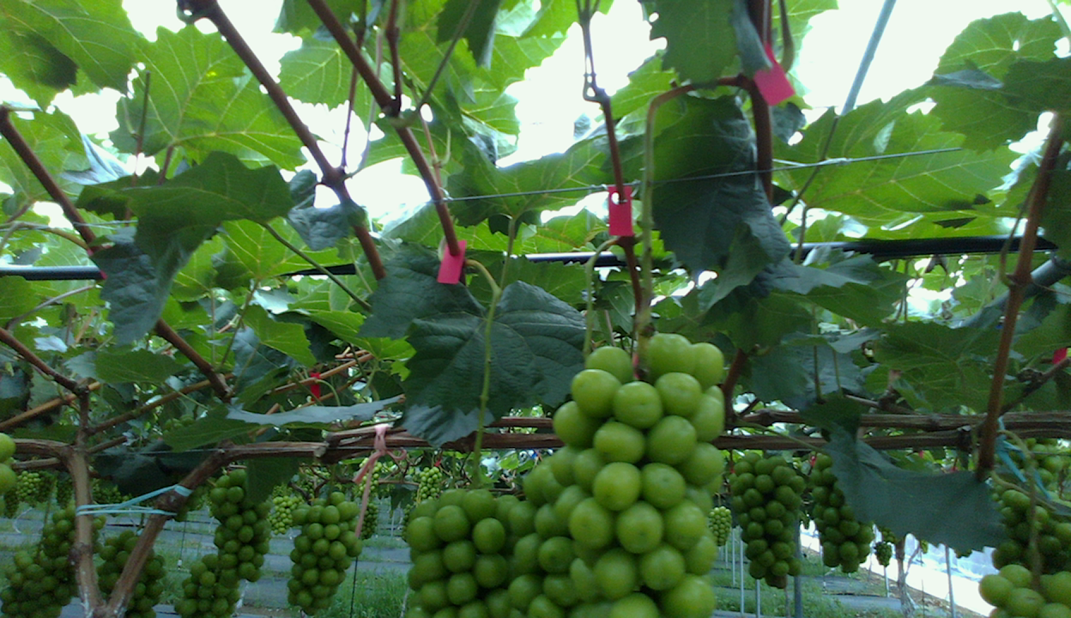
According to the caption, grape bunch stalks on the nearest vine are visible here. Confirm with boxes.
[466,259,501,488]
[999,429,1042,591]
[621,236,652,383]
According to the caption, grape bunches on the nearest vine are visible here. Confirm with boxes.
[979,566,1070,617]
[403,488,527,617]
[509,333,725,617]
